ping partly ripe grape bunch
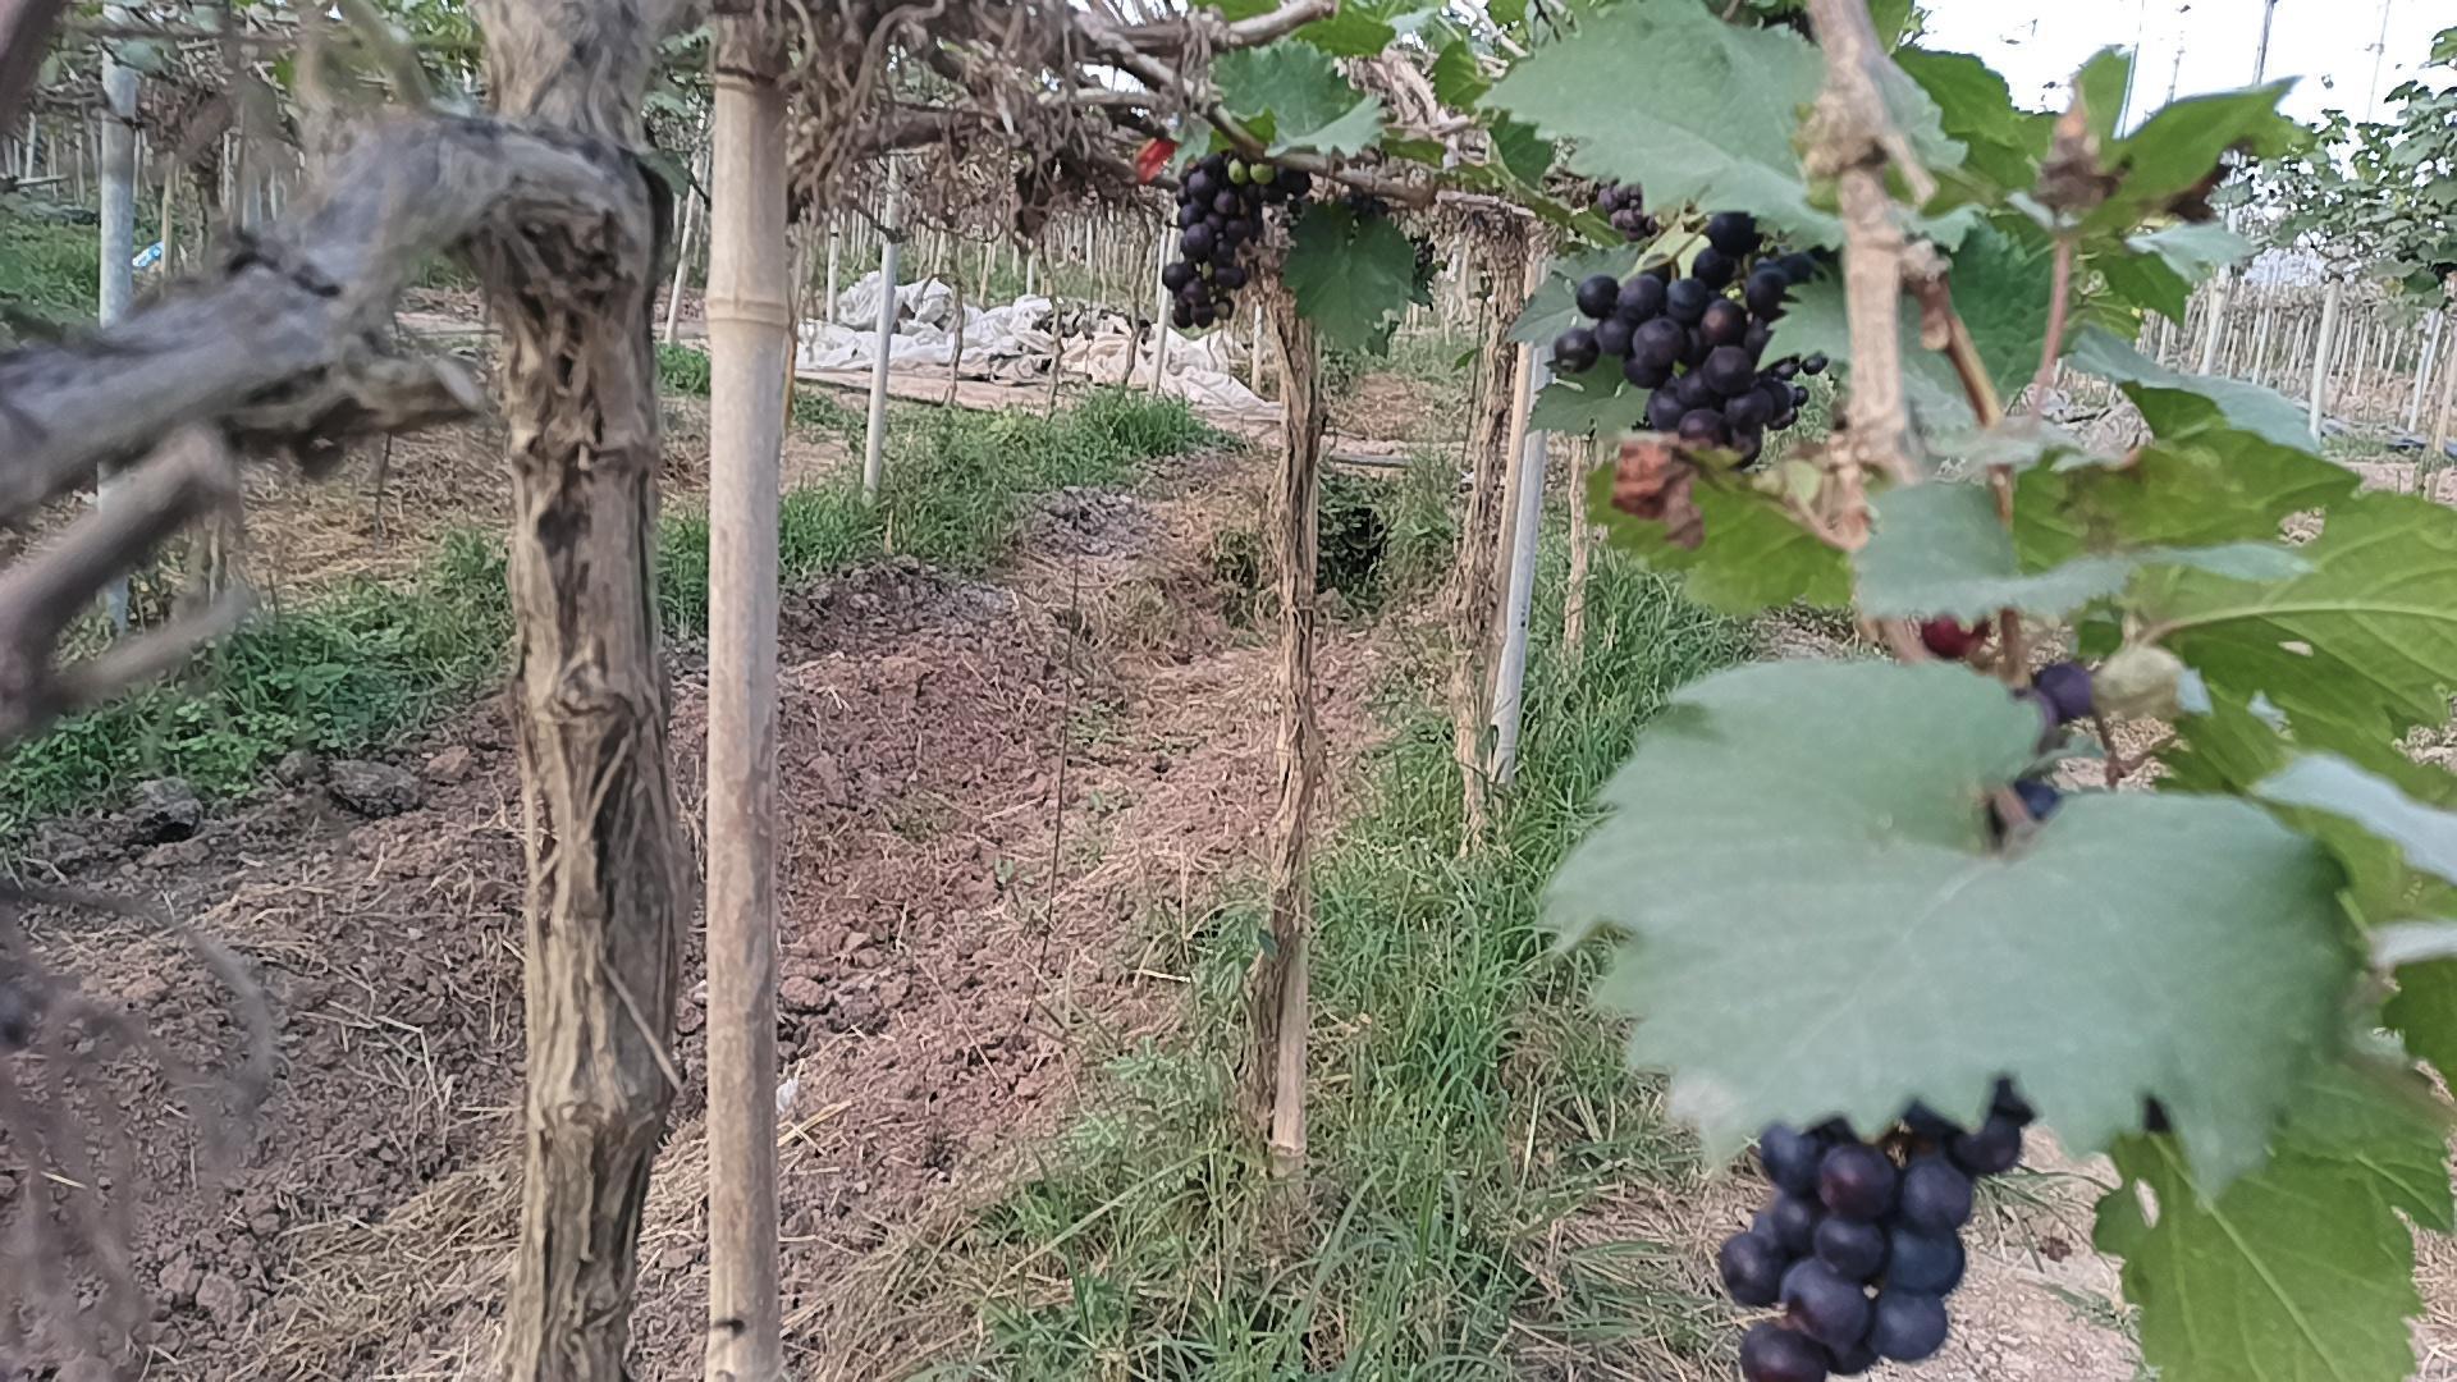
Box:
[1162,147,1310,329]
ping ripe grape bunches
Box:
[1554,211,1838,470]
[1716,617,2094,1381]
